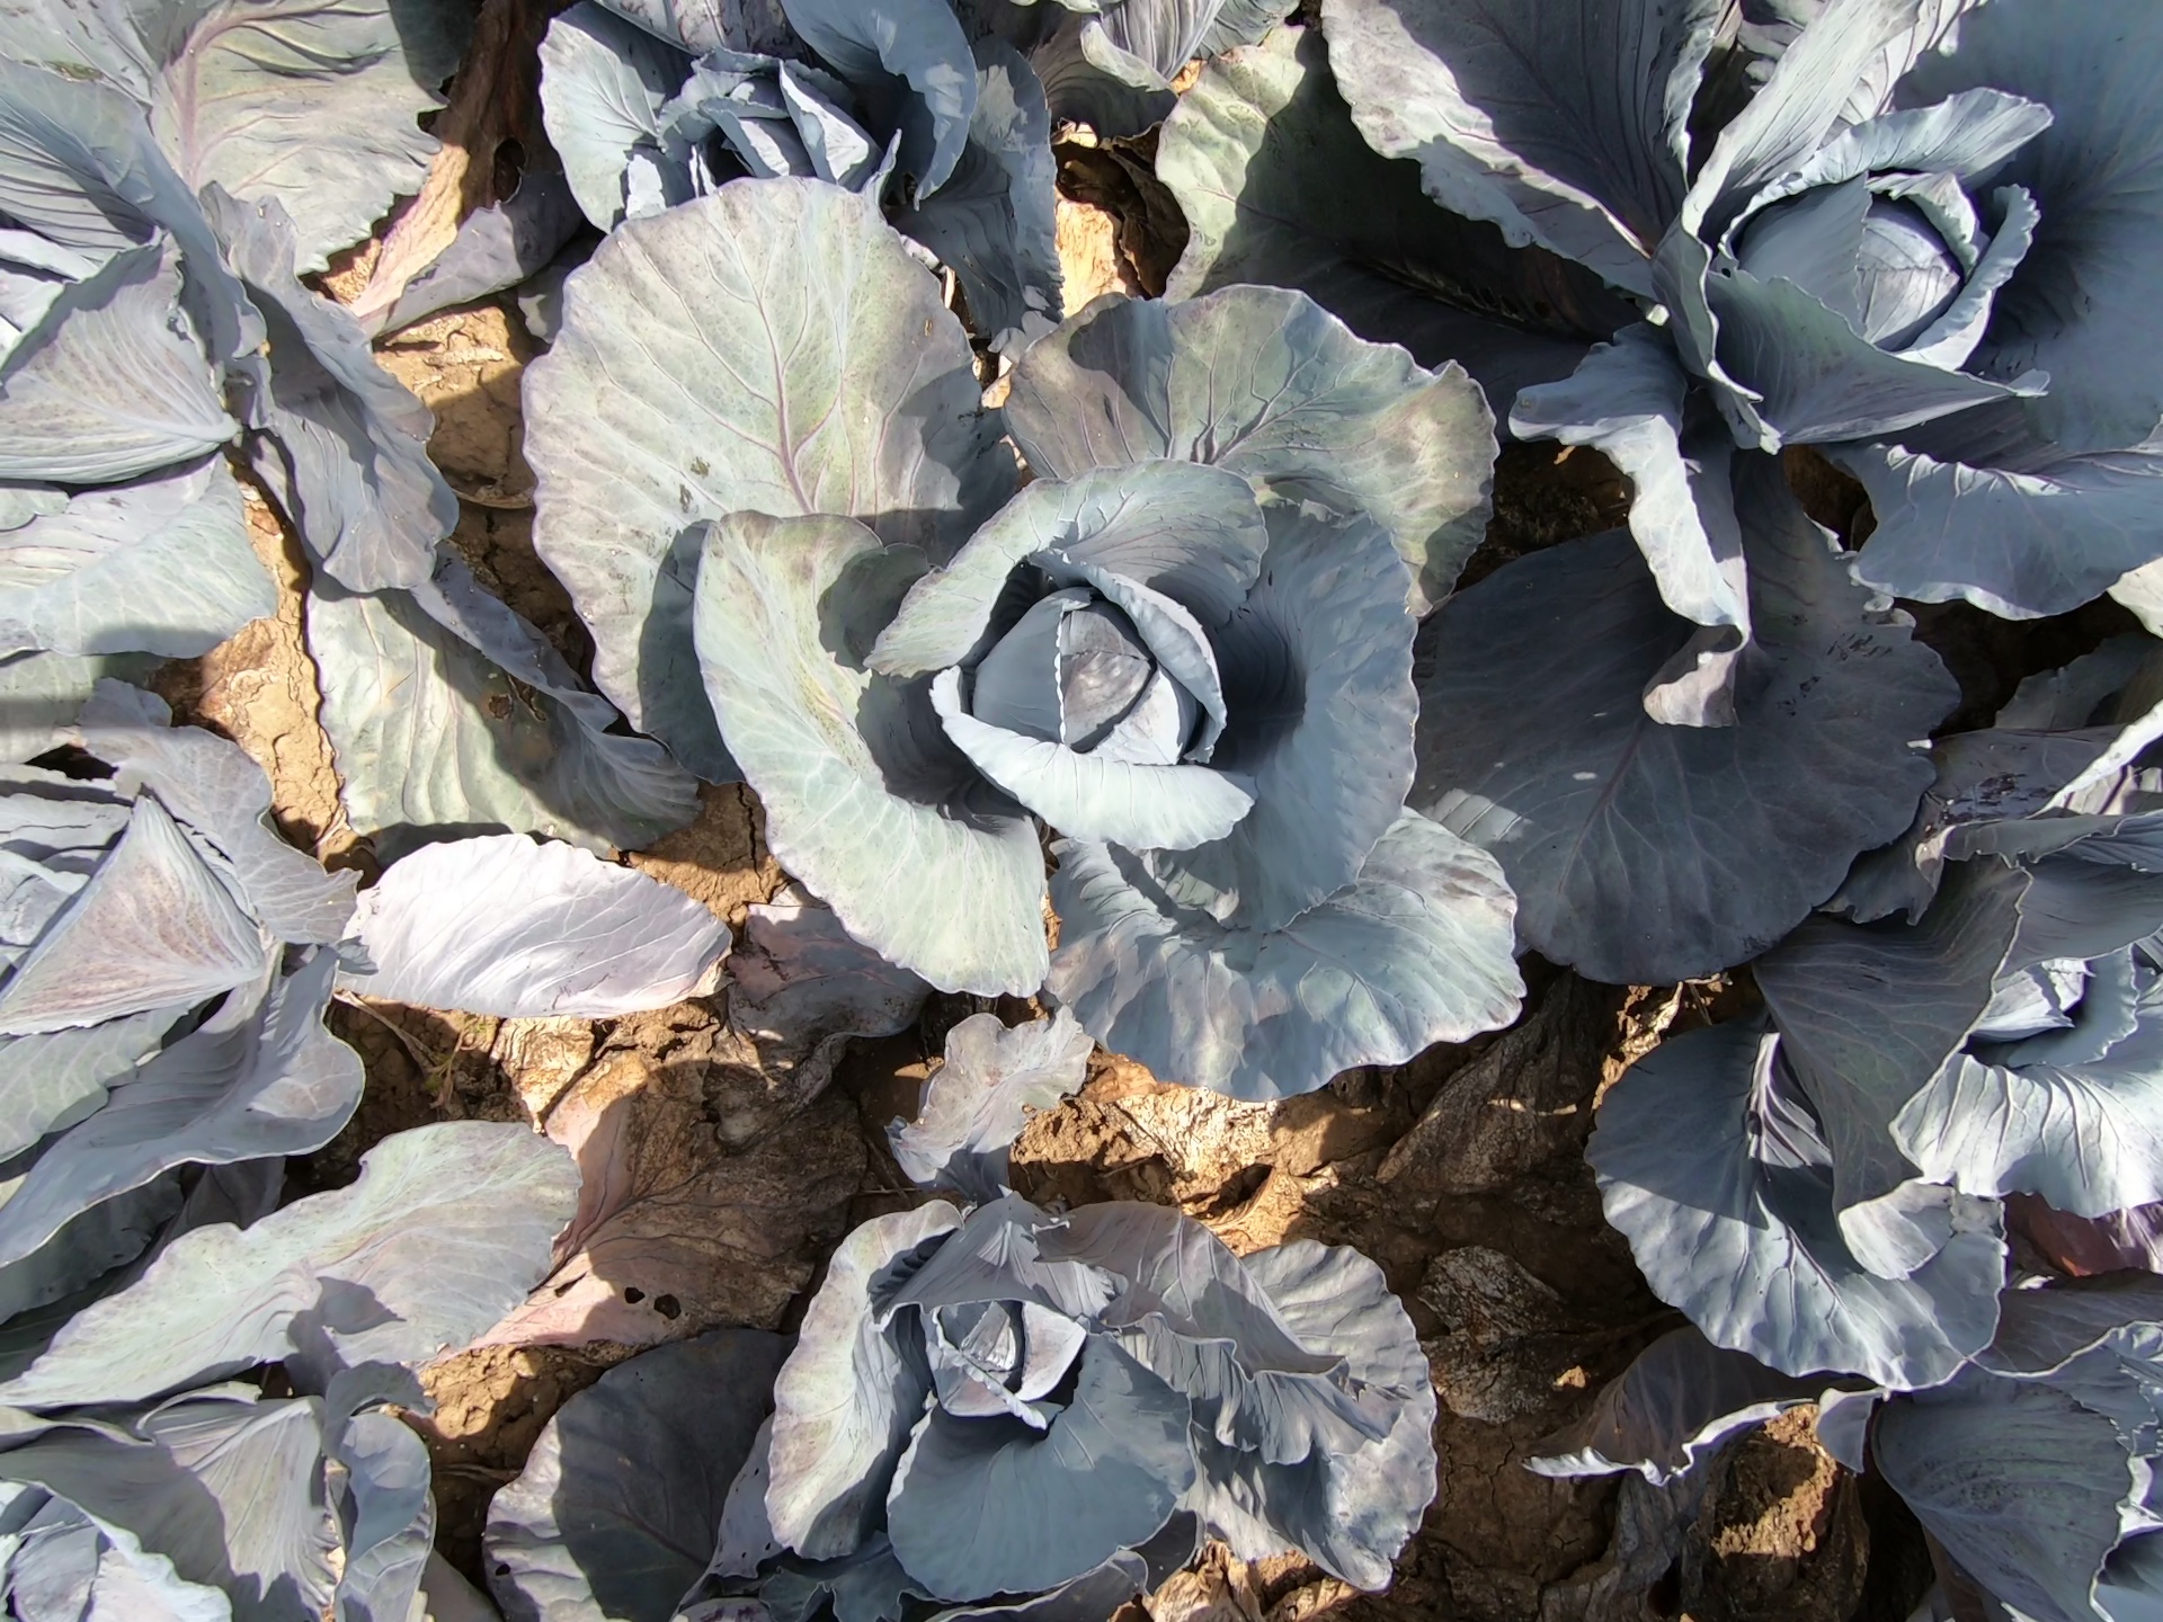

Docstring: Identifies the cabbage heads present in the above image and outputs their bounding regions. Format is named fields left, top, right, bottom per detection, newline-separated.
left=1735, top=179, right=1999, bottom=403
left=925, top=1216, right=1088, bottom=1417
left=979, top=586, right=1211, bottom=797
left=705, top=77, right=863, bottom=231
left=2, top=845, right=238, bottom=991
left=1885, top=846, right=2091, bottom=1042
left=14, top=1410, right=311, bottom=1619
left=1999, top=1428, right=2153, bottom=1557
left=6, top=232, right=164, bottom=454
